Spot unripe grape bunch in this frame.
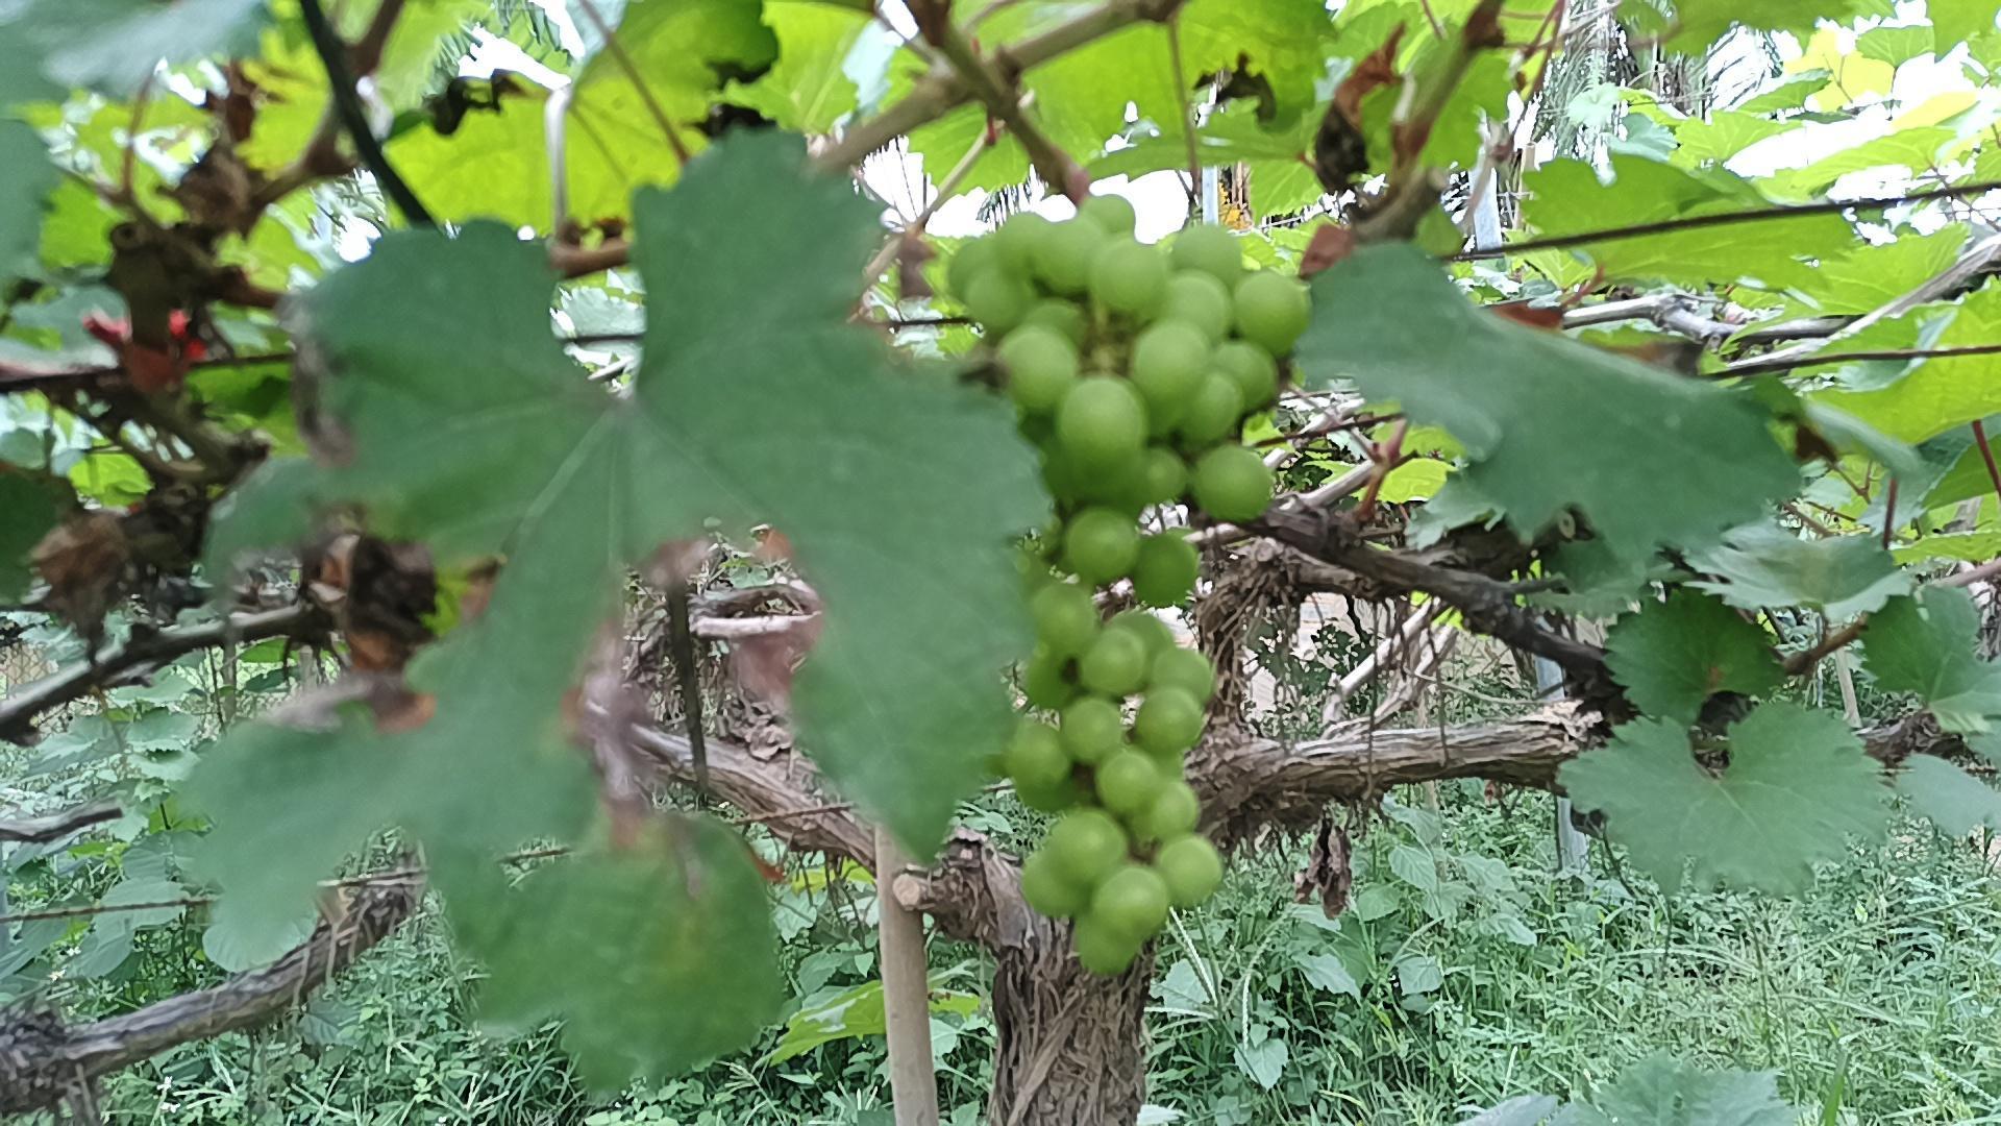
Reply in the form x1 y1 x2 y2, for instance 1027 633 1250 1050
949 191 1309 974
